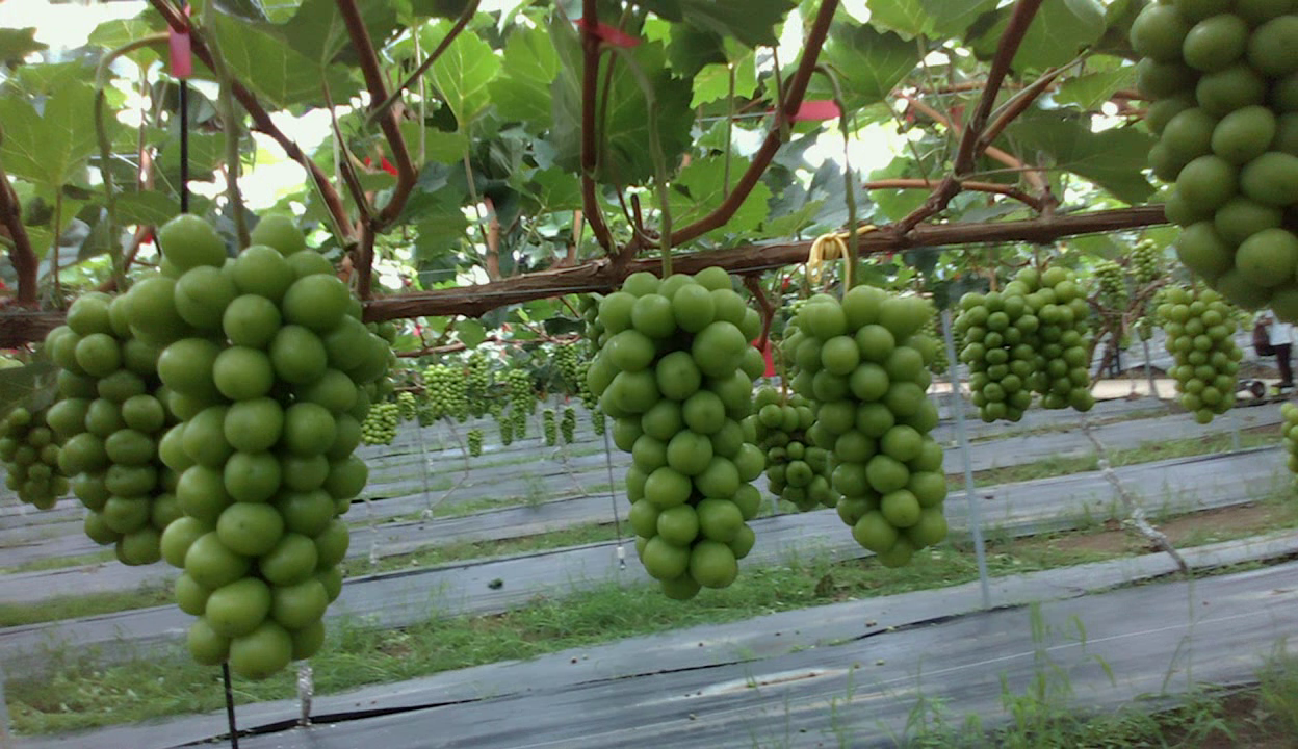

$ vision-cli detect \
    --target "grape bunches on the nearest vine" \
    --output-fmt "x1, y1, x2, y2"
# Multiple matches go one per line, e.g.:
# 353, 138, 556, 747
783, 286, 946, 569
41, 289, 180, 566
122, 211, 391, 679
1131, 0, 1297, 322
589, 267, 767, 601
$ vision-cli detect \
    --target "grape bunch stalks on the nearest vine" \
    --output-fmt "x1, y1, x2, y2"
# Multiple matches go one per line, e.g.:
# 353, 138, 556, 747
89, 33, 156, 292
203, 0, 250, 249
615, 49, 672, 278
820, 67, 860, 283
